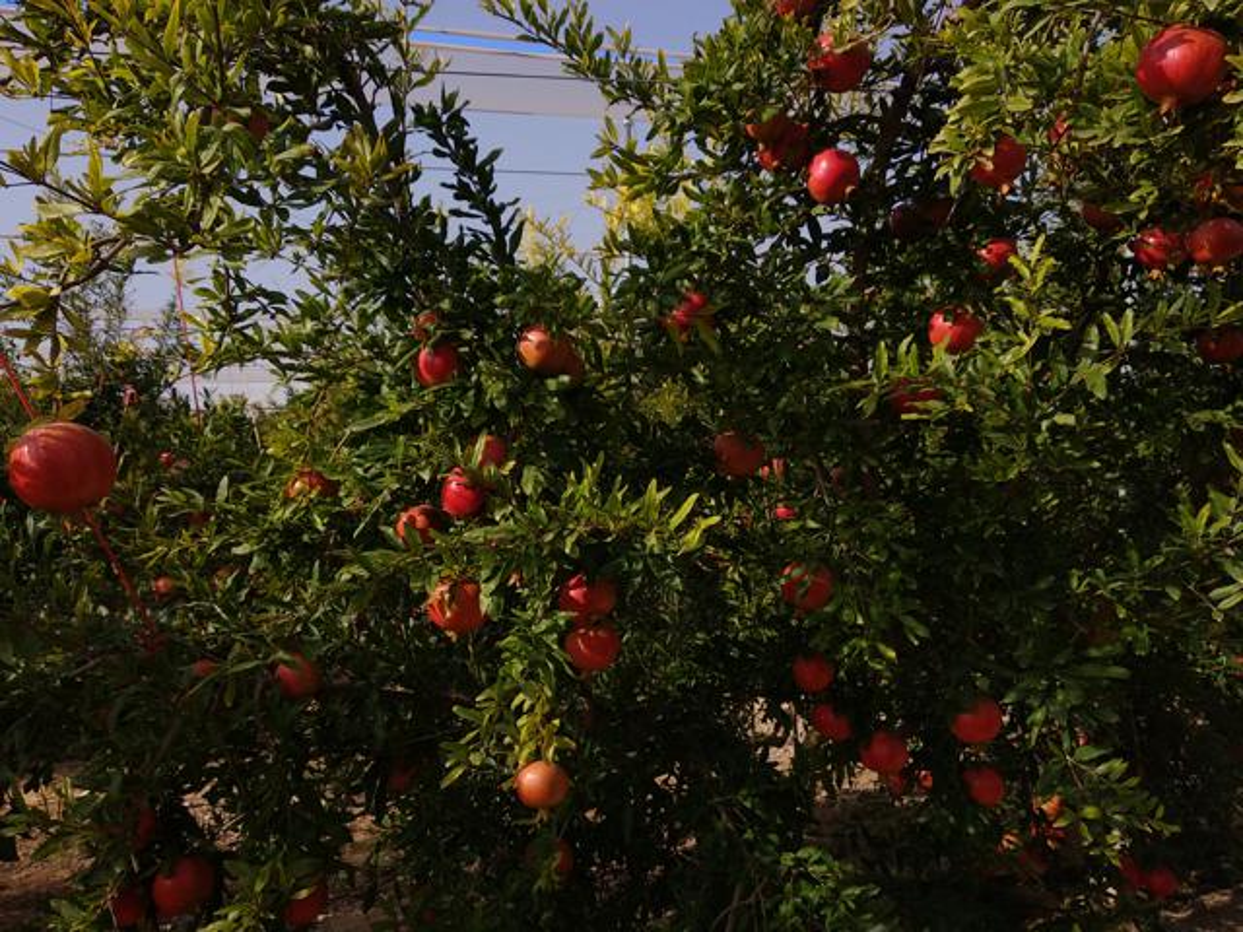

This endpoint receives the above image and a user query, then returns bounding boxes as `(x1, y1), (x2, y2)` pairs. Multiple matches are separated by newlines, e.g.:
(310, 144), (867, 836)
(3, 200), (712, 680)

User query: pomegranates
(994, 831), (1024, 856)
(8, 421), (122, 515)
(410, 309), (435, 338)
(555, 573), (618, 625)
(1043, 823), (1066, 841)
(858, 730), (907, 782)
(555, 837), (577, 876)
(414, 342), (460, 386)
(773, 505), (800, 520)
(1134, 227), (1189, 280)
(111, 882), (148, 926)
(1189, 173), (1243, 214)
(773, 0), (818, 17)
(961, 765), (1004, 810)
(806, 148), (862, 206)
(392, 505), (451, 544)
(249, 107), (268, 142)
(286, 885), (328, 932)
(1148, 868), (1181, 901)
(969, 134), (1025, 196)
(886, 377), (942, 414)
(151, 573), (179, 606)
(783, 559), (833, 617)
(952, 697), (1006, 746)
(565, 623), (621, 680)
(1134, 23), (1233, 122)
(1031, 794), (1068, 821)
(138, 798), (157, 852)
(1119, 854), (1150, 889)
(888, 771), (905, 796)
(1086, 202), (1117, 227)
(756, 120), (810, 175)
(926, 305), (987, 353)
(1196, 330), (1243, 361)
(284, 468), (338, 505)
(425, 577), (486, 641)
(915, 769), (934, 792)
(439, 464), (489, 522)
(153, 858), (218, 918)
(274, 654), (319, 701)
(515, 759), (573, 823)
(814, 703), (857, 740)
(478, 435), (511, 470)
(1185, 216), (1243, 274)
(975, 237), (1020, 285)
(808, 33), (874, 95)
(742, 111), (792, 144)
(713, 431), (767, 478)
(792, 650), (839, 693)
(513, 322), (583, 381)
(658, 289), (707, 336)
